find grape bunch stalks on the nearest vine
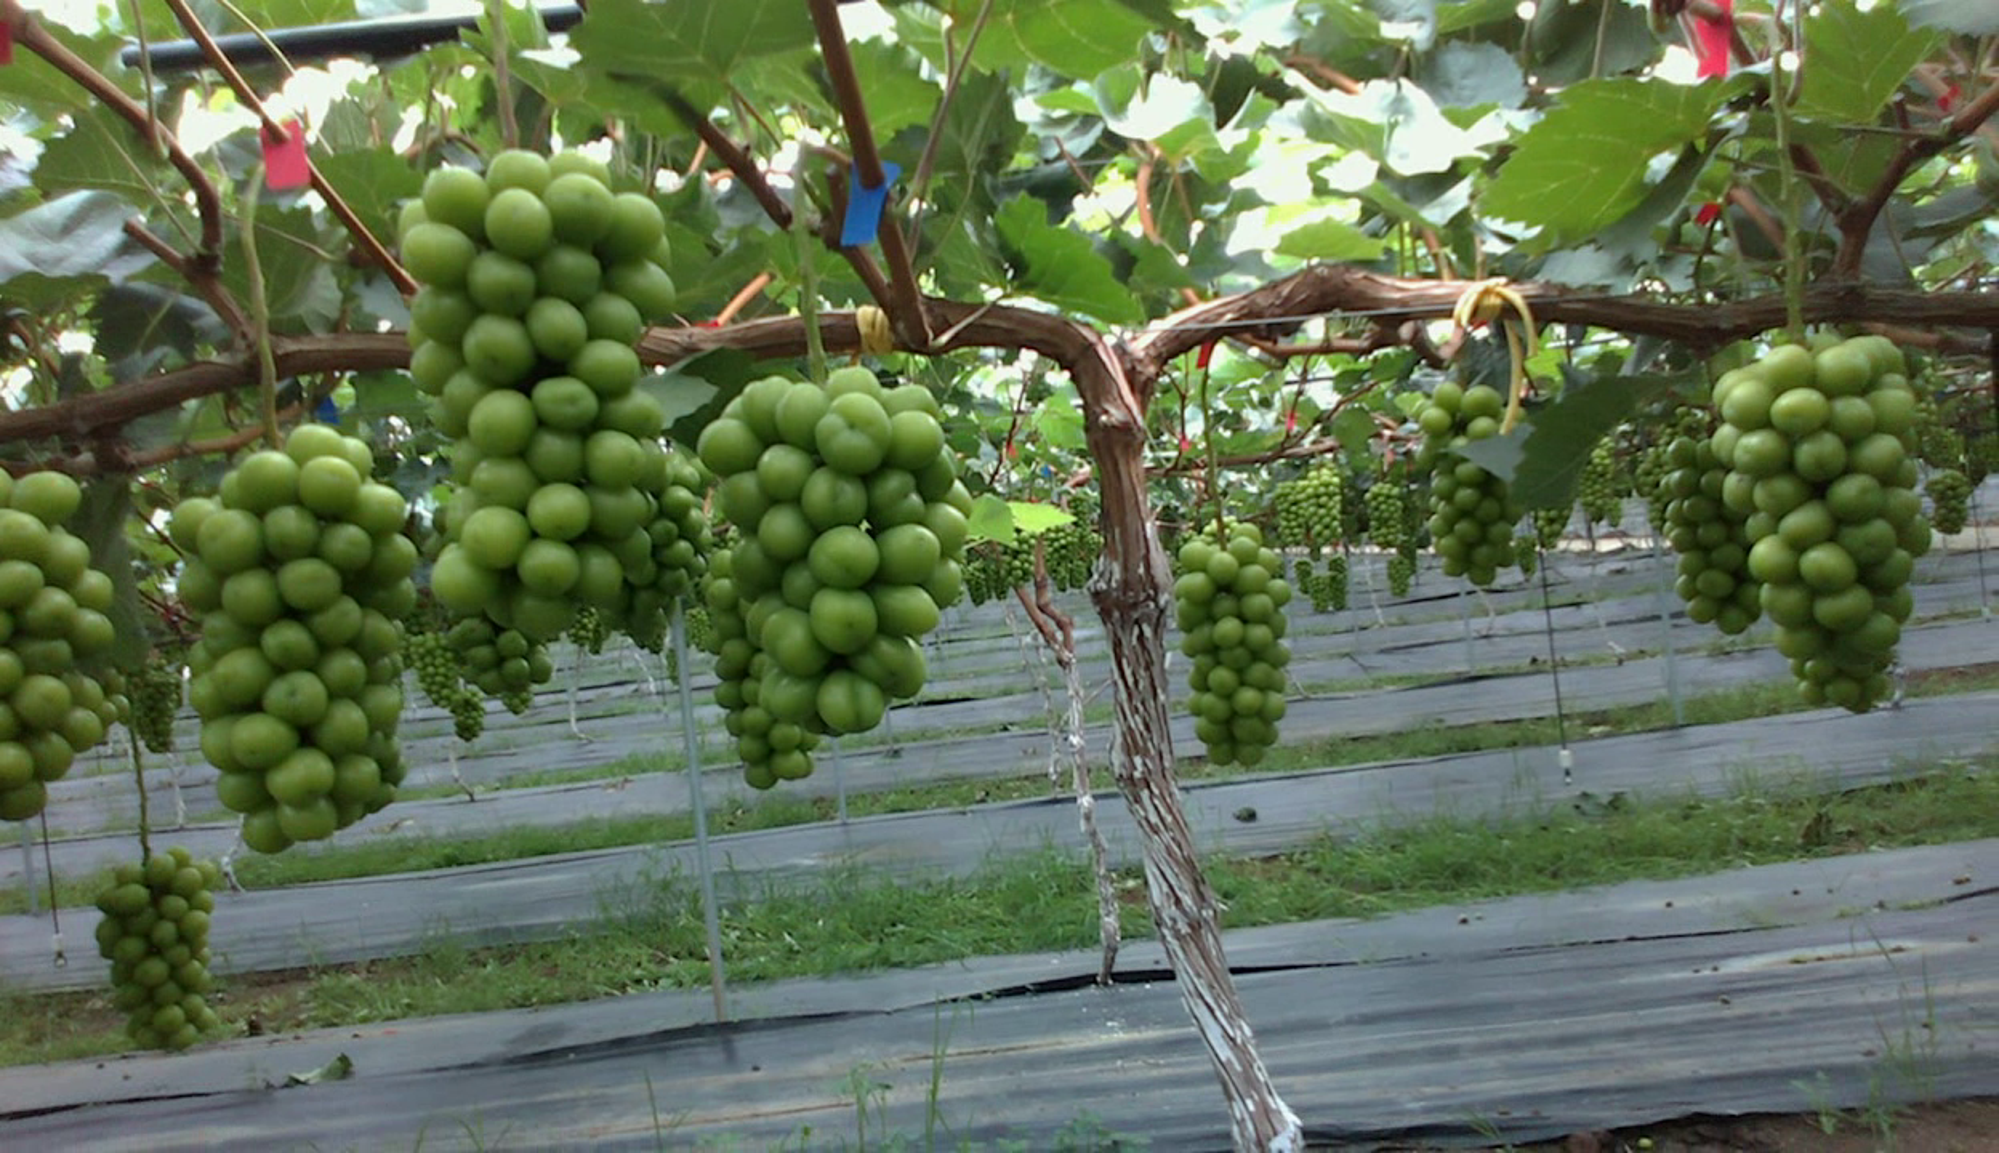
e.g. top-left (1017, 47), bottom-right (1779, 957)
top-left (1748, 14), bottom-right (1807, 338)
top-left (793, 141), bottom-right (847, 378)
top-left (239, 163), bottom-right (284, 447)
top-left (485, 5), bottom-right (517, 147)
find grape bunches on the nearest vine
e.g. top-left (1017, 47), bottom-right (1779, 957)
top-left (0, 468), bottom-right (117, 820)
top-left (168, 424), bottom-right (420, 857)
top-left (697, 365), bottom-right (971, 737)
top-left (397, 147), bottom-right (676, 633)
top-left (1707, 335), bottom-right (1930, 666)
